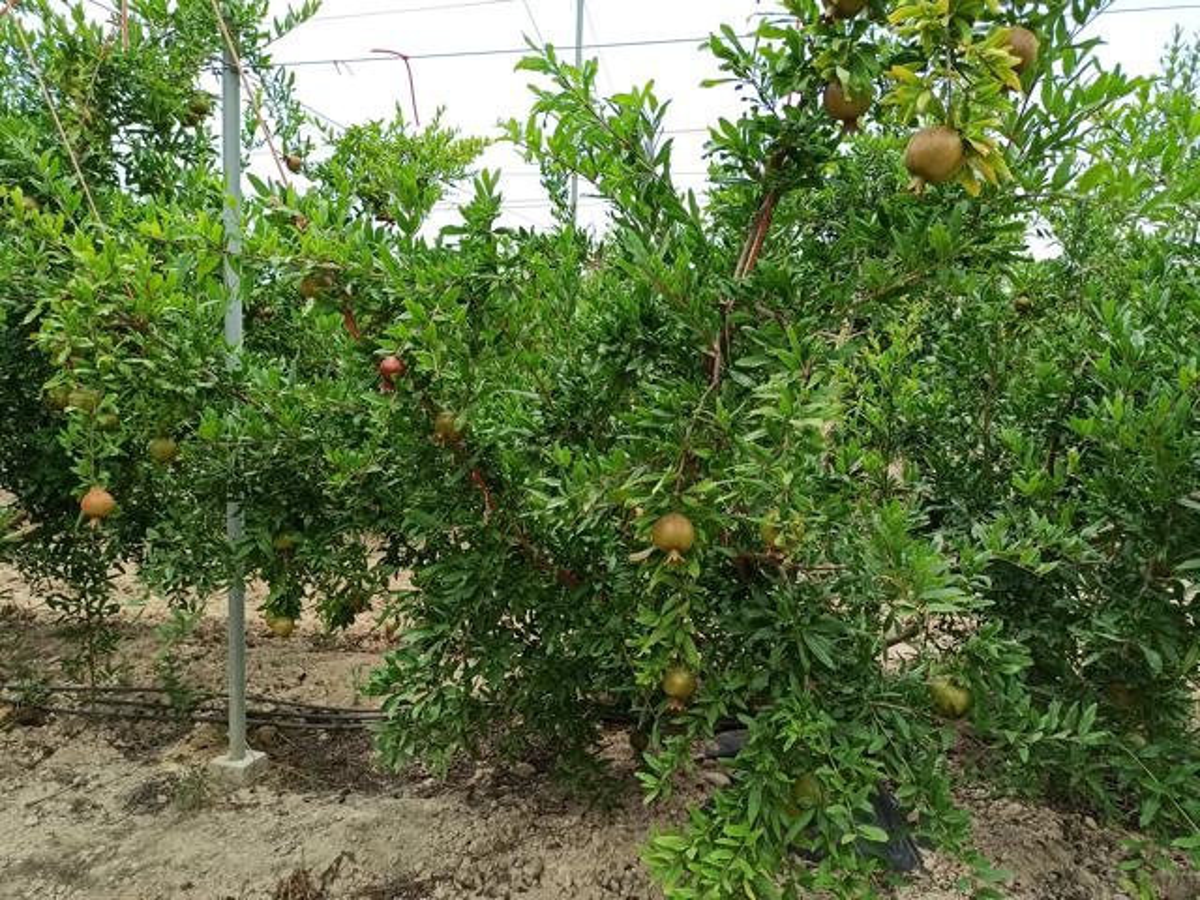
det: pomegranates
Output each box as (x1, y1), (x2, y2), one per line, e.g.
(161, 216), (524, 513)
(934, 682), (973, 716)
(79, 484), (118, 532)
(287, 154), (304, 172)
(433, 411), (459, 450)
(148, 437), (180, 463)
(1009, 26), (1039, 75)
(759, 506), (808, 564)
(819, 0), (868, 26)
(823, 77), (872, 139)
(894, 122), (967, 206)
(268, 615), (294, 643)
(651, 510), (697, 566)
(379, 356), (405, 392)
(660, 667), (697, 712)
